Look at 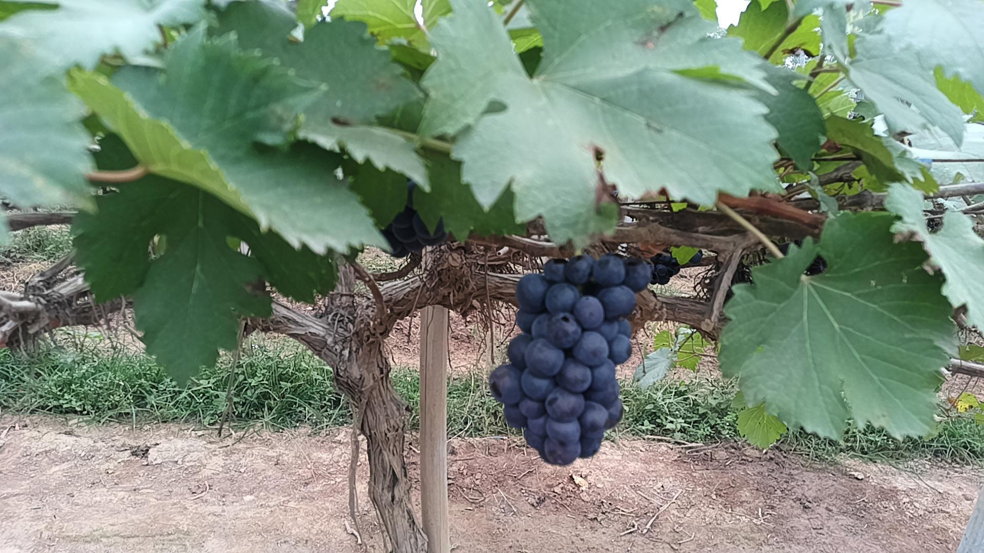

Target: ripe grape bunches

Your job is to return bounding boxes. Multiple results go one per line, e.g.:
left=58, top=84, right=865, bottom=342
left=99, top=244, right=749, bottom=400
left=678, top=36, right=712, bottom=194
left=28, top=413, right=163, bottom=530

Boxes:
left=642, top=244, right=706, bottom=284
left=489, top=253, right=651, bottom=465
left=380, top=180, right=449, bottom=258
